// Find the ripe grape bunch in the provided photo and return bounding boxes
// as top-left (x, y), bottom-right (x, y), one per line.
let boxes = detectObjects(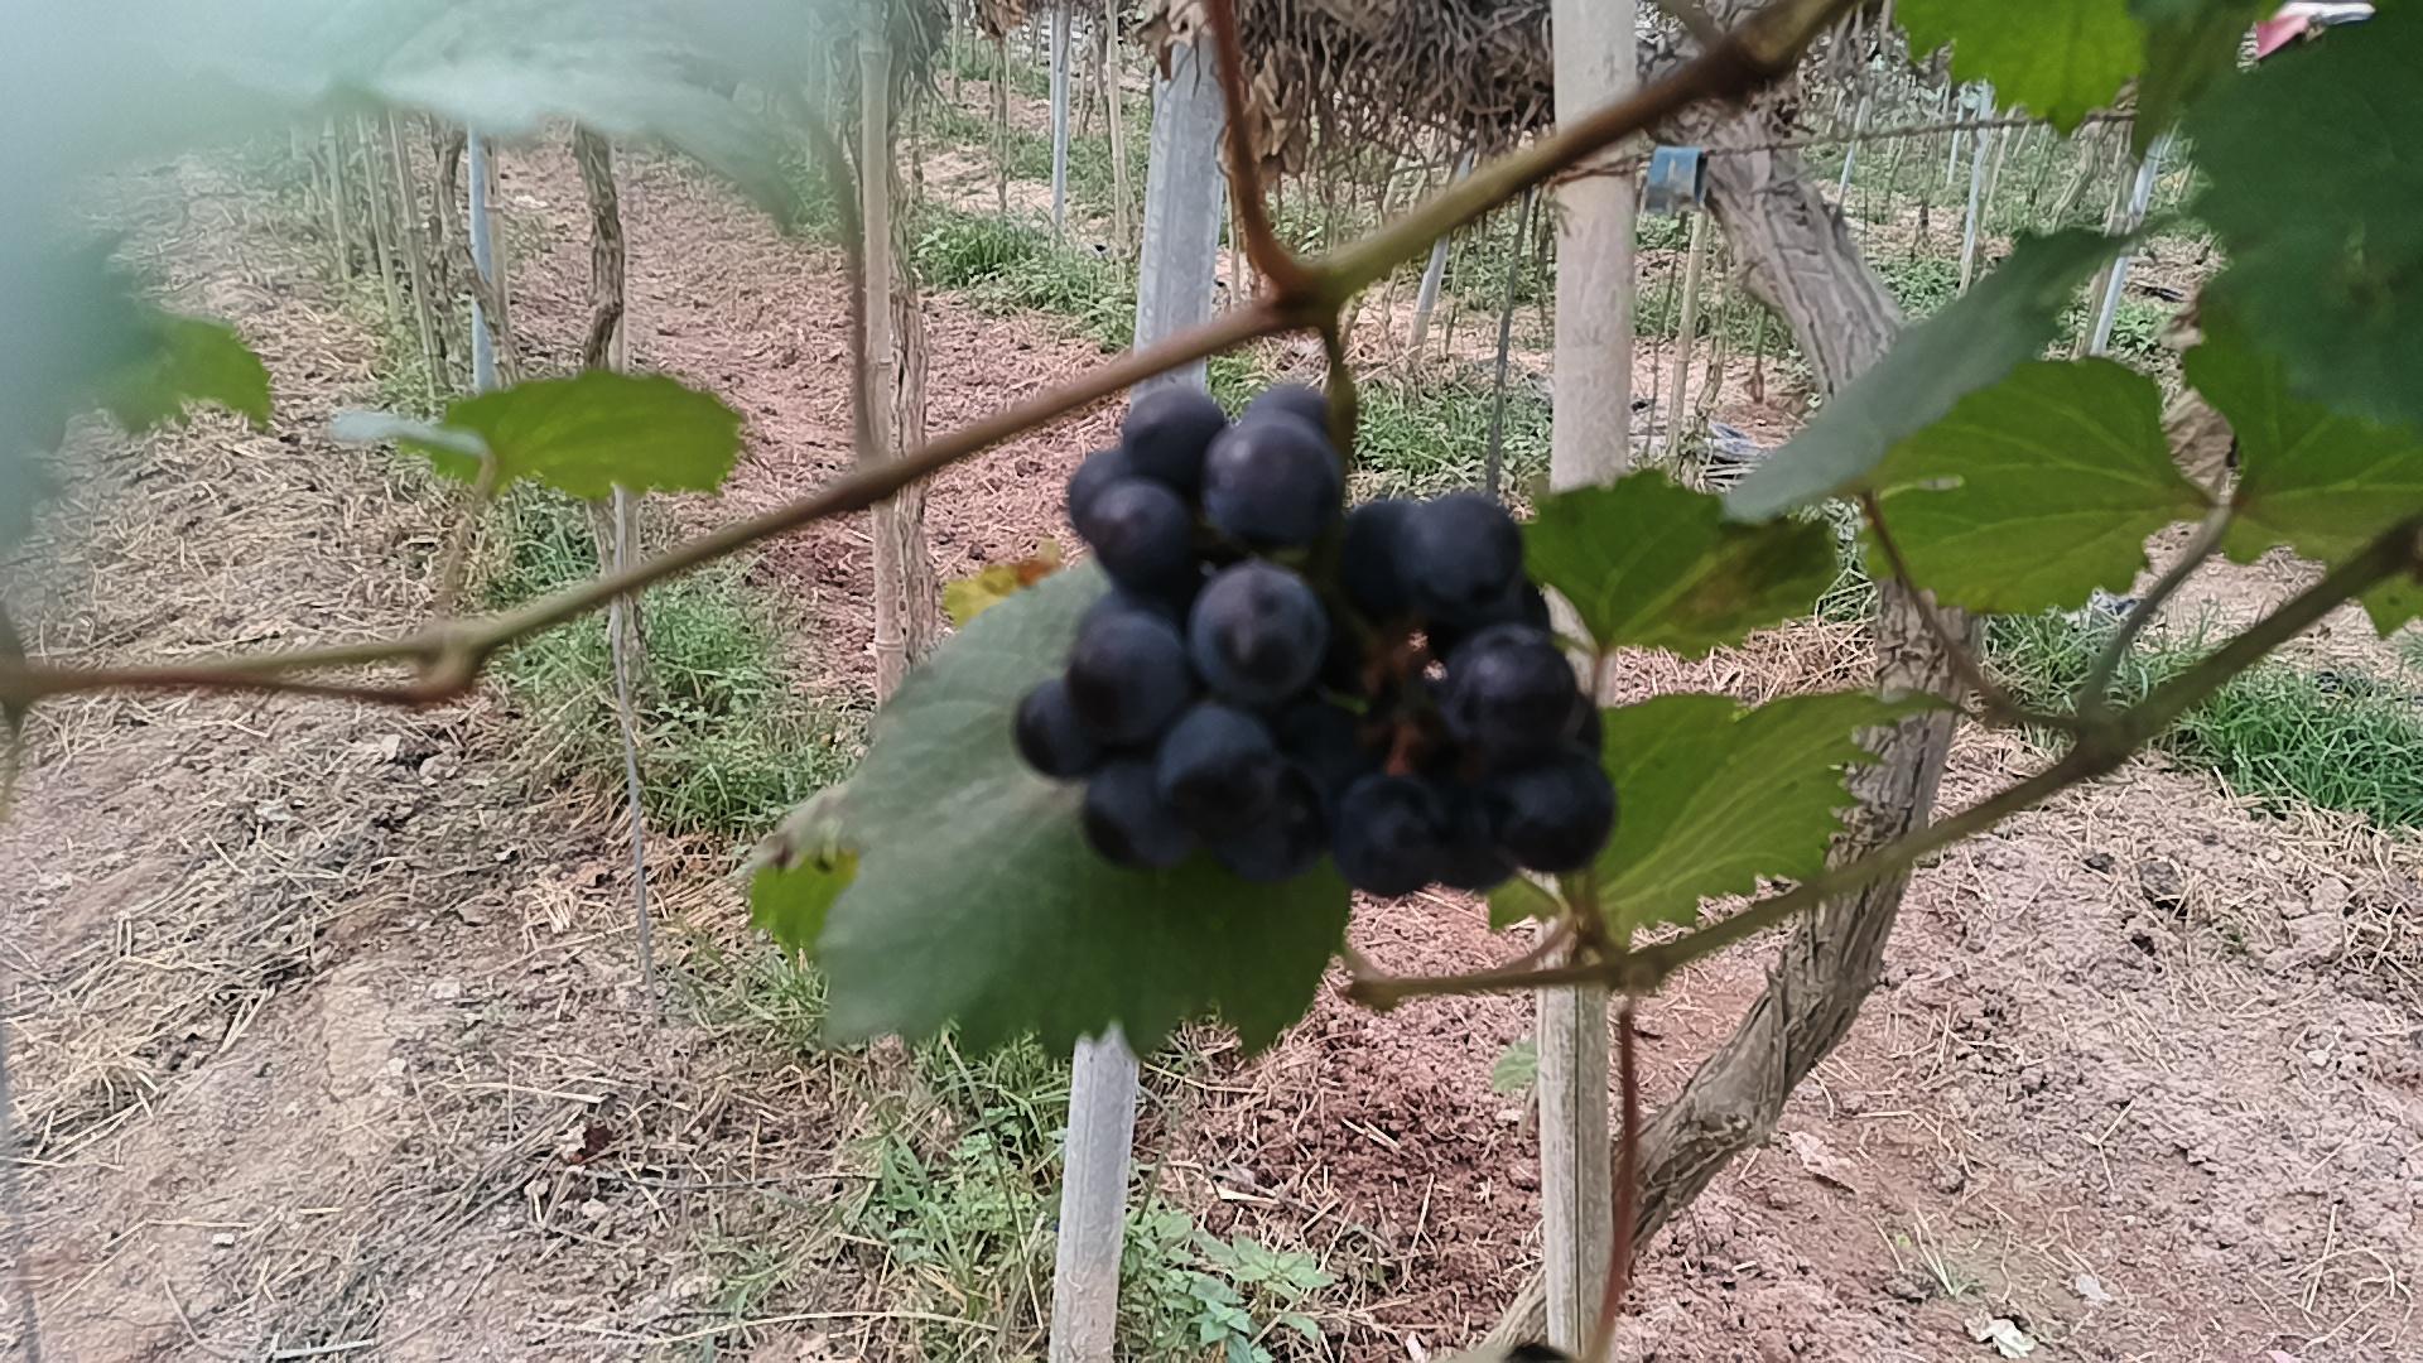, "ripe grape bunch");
top-left (1013, 385), bottom-right (1614, 897)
